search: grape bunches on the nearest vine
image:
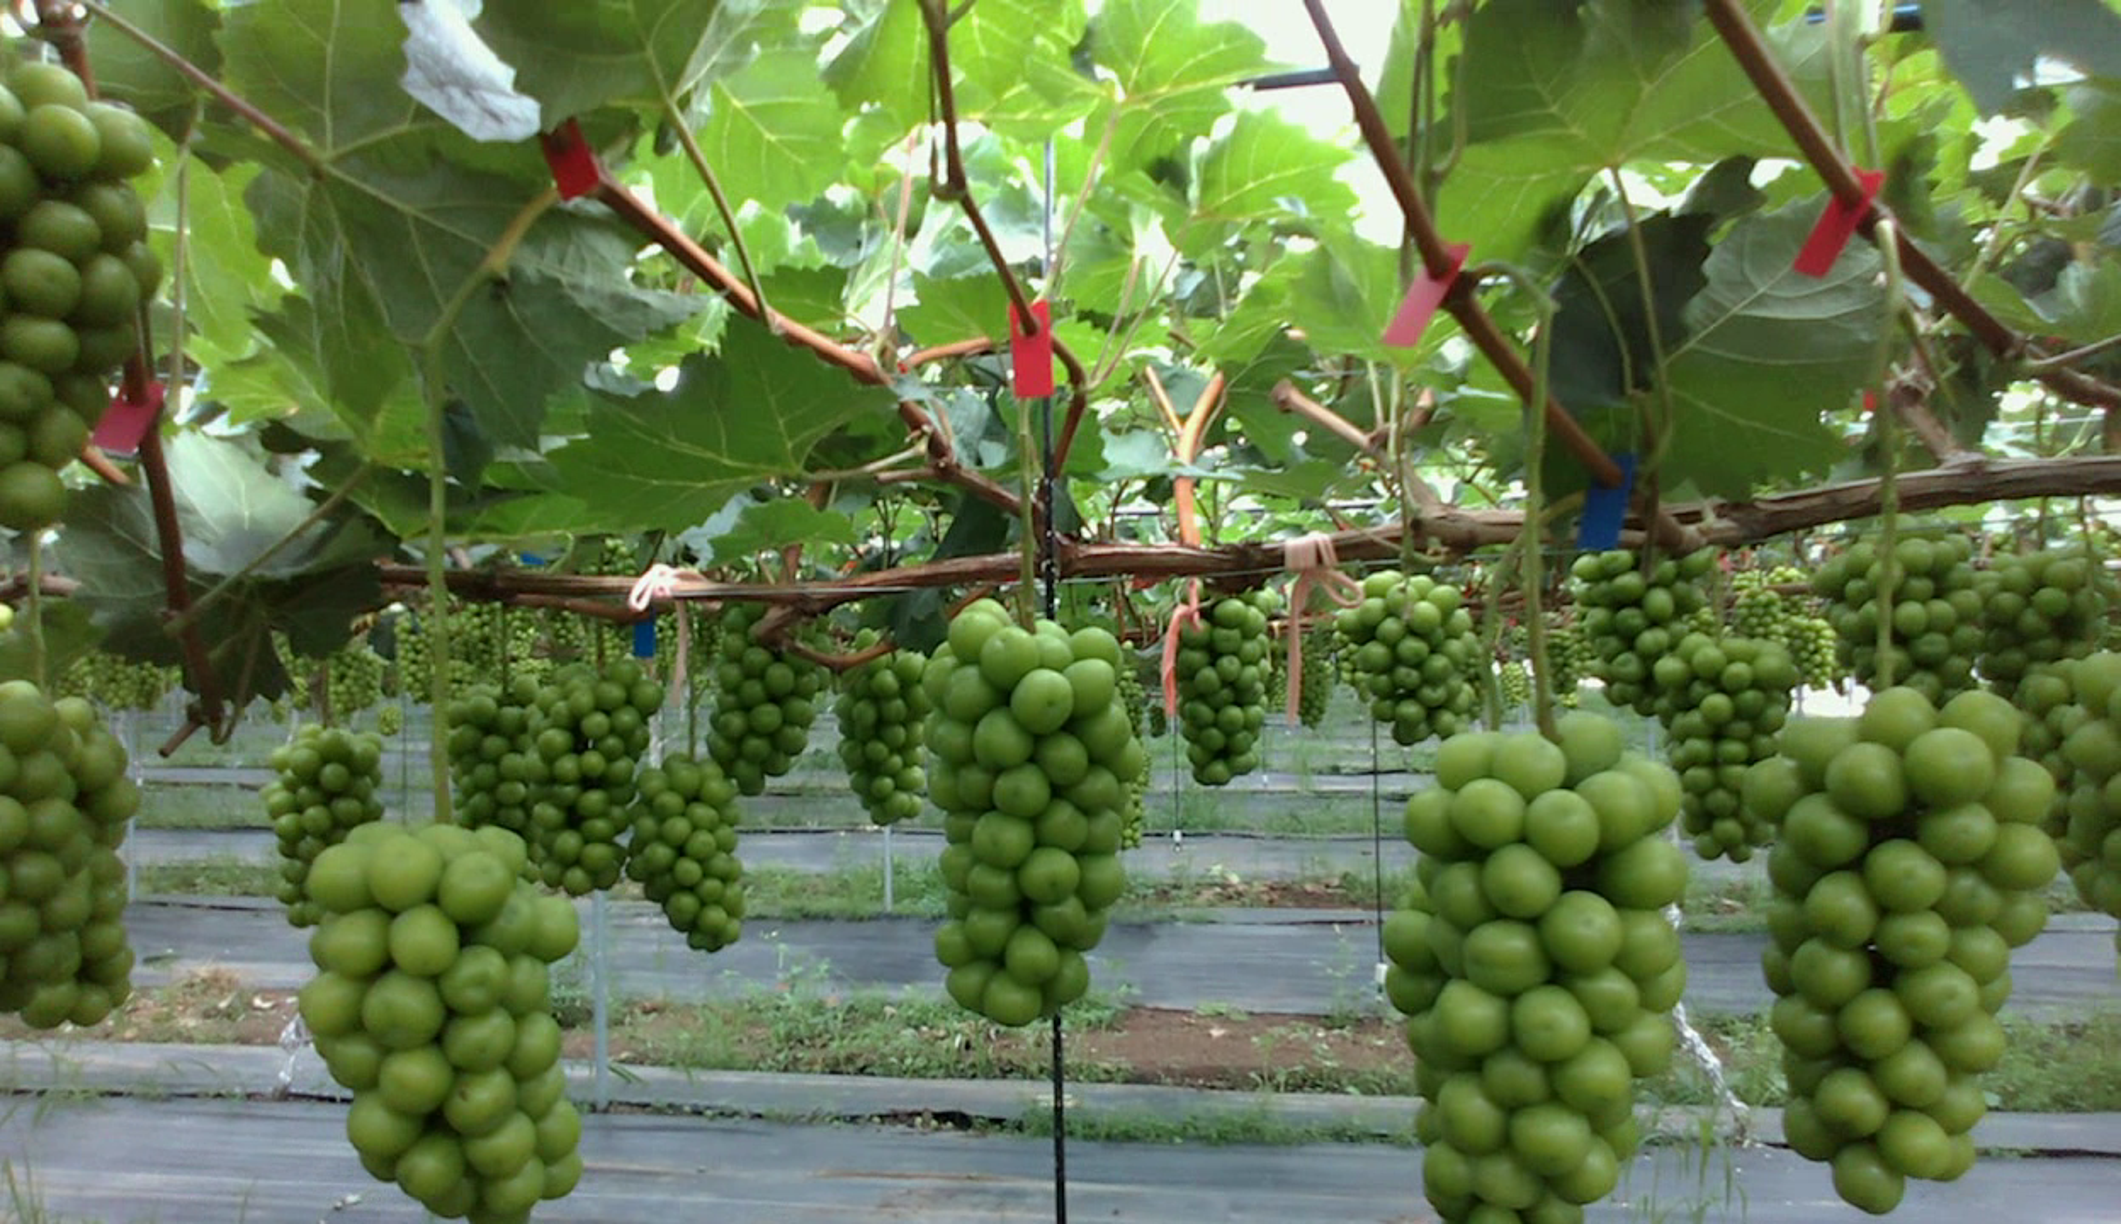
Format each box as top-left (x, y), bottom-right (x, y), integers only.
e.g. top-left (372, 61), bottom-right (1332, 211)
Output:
top-left (297, 818), bottom-right (585, 1222)
top-left (0, 678), bottom-right (143, 1030)
top-left (1382, 716), bottom-right (1688, 1222)
top-left (916, 597), bottom-right (1145, 1030)
top-left (0, 61), bottom-right (165, 534)
top-left (1744, 685), bottom-right (2056, 1214)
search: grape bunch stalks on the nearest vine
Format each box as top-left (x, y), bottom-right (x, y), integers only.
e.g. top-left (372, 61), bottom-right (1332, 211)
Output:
top-left (27, 530), bottom-right (46, 695)
top-left (1472, 258), bottom-right (1565, 745)
top-left (1018, 398), bottom-right (1035, 632)
top-left (420, 185), bottom-right (559, 823)
top-left (1868, 218), bottom-right (1902, 692)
